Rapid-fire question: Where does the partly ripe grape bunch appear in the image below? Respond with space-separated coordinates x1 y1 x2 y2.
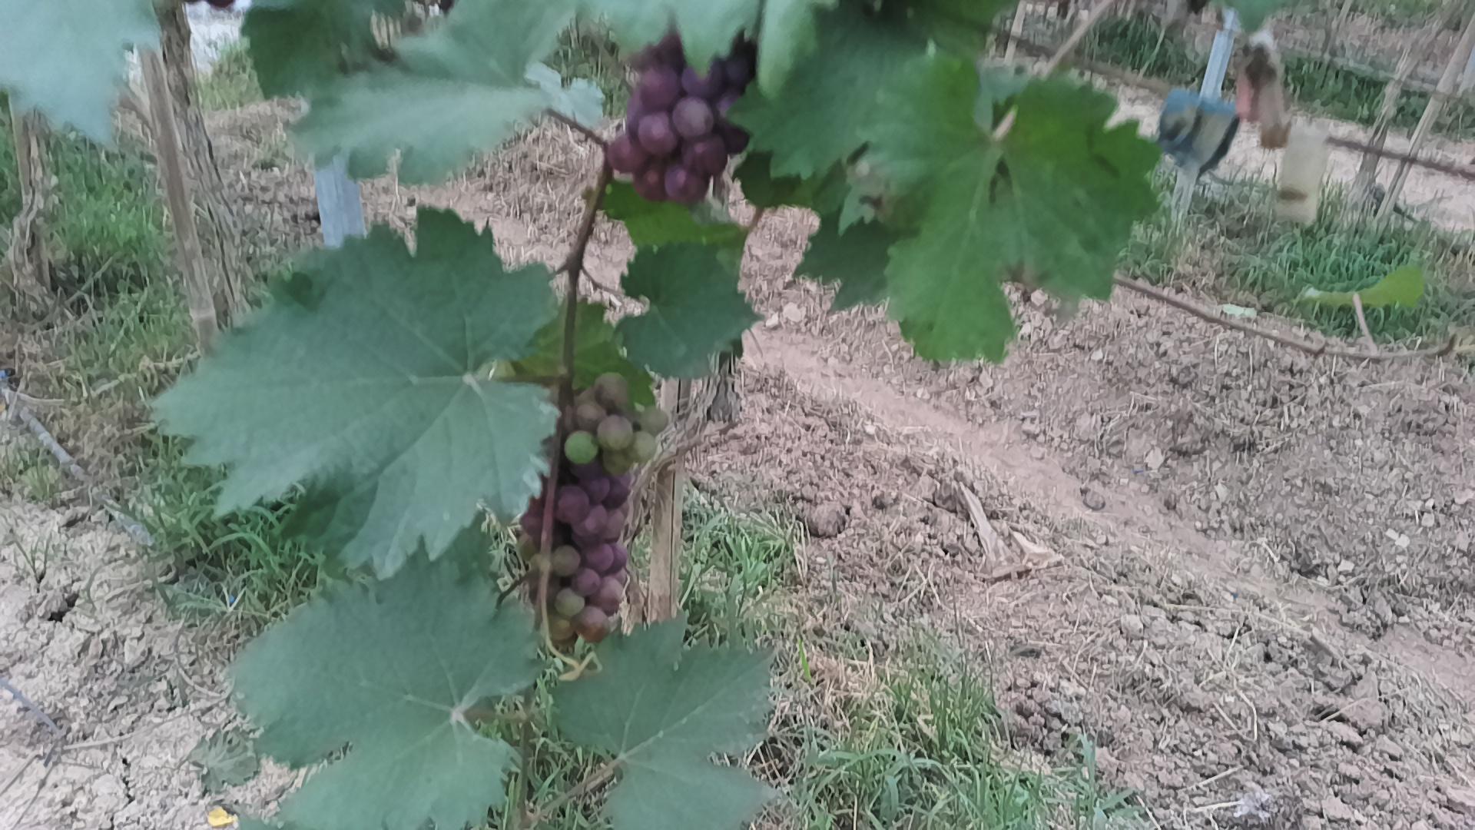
520 373 666 645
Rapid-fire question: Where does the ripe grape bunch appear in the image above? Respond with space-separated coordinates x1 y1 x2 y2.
604 25 757 205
